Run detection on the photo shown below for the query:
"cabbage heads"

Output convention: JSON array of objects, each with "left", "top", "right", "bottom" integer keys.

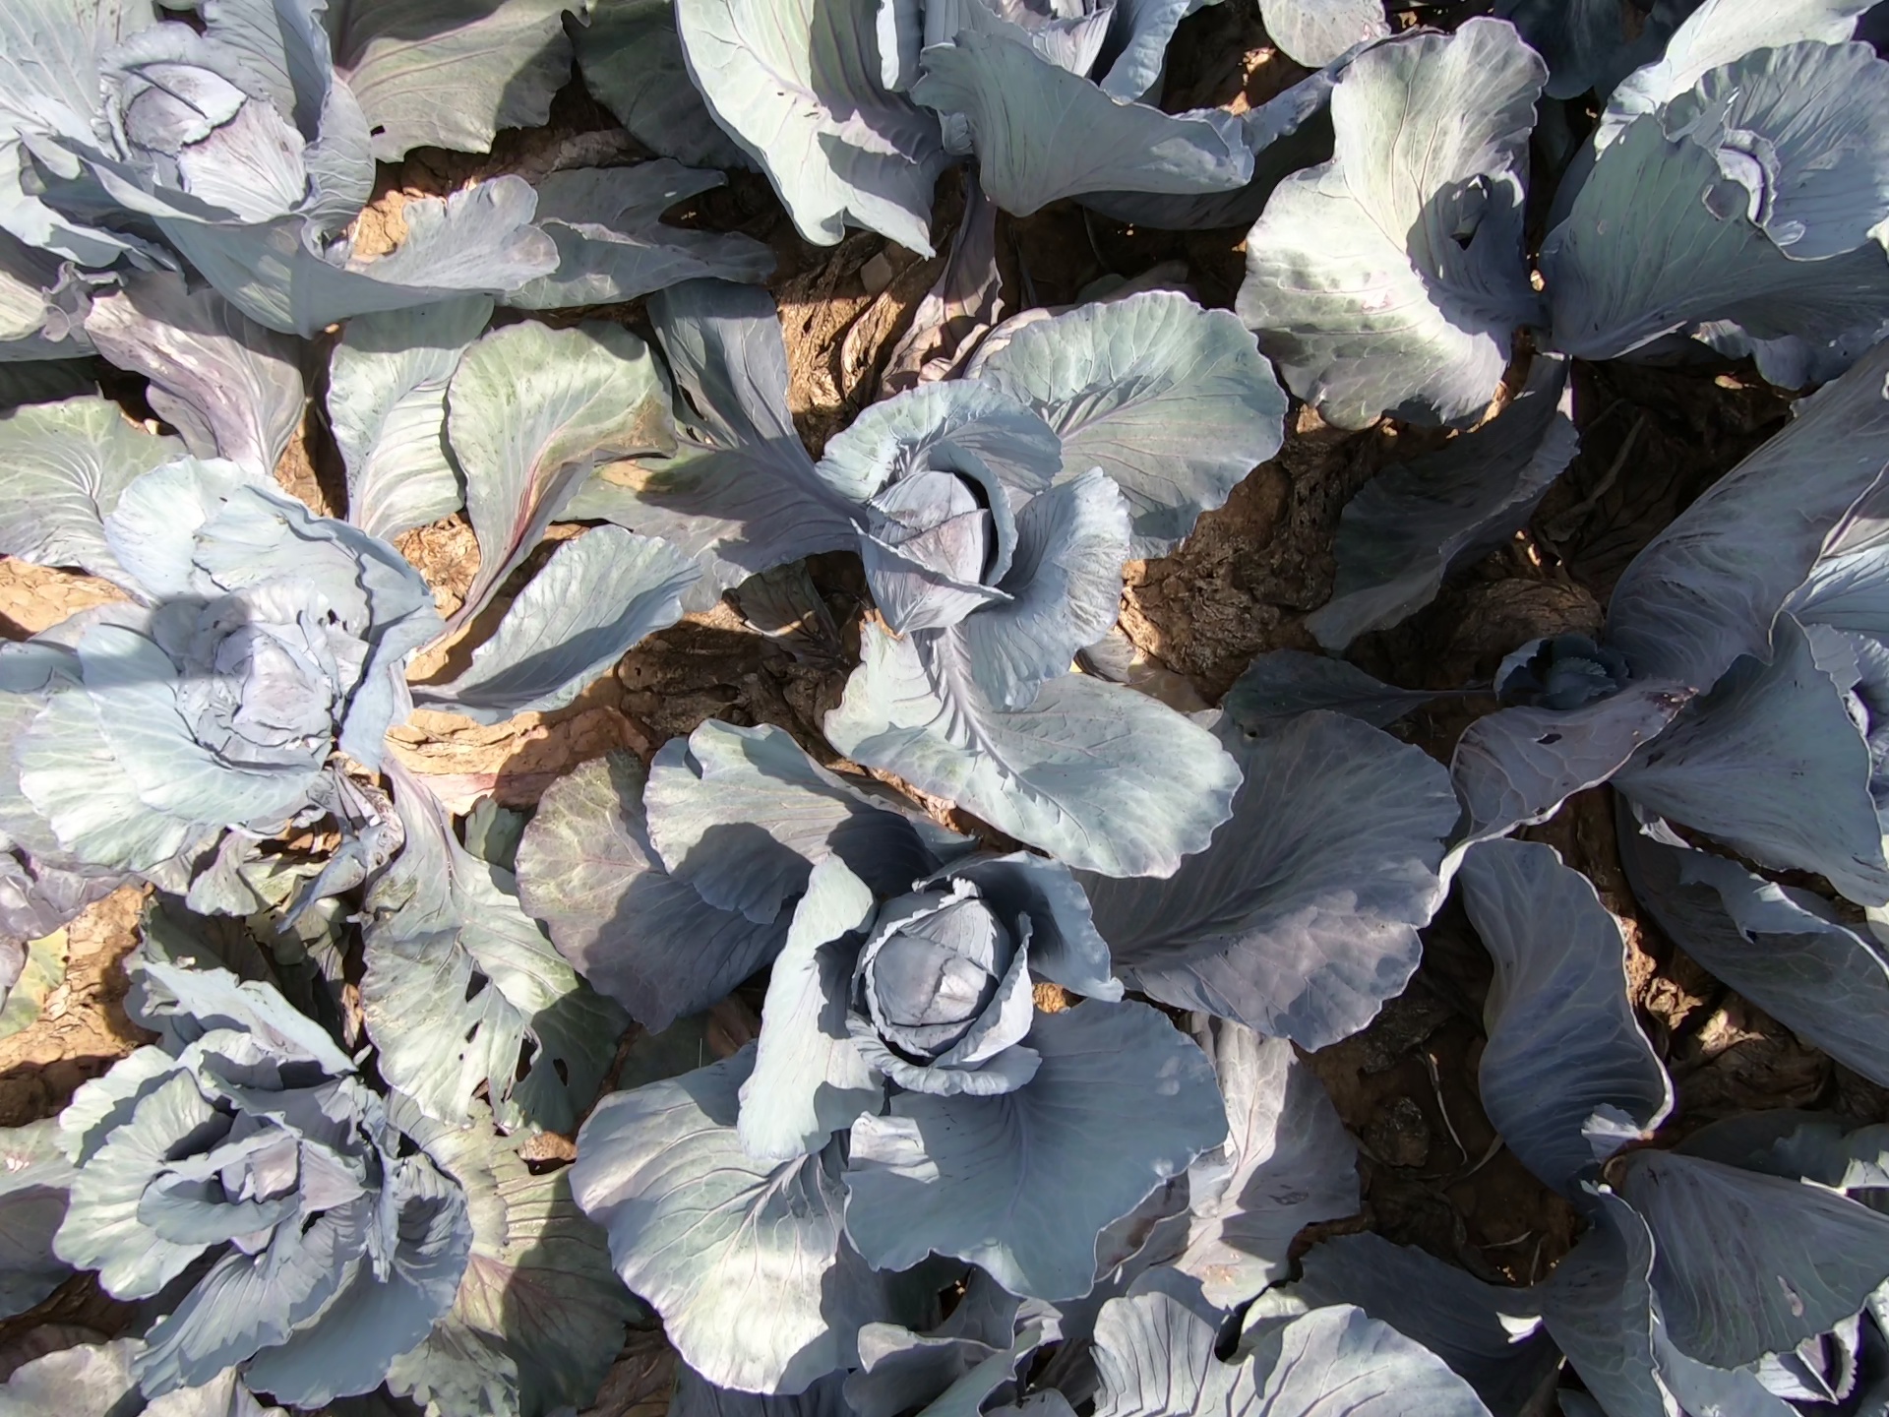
[
  {"left": 865, "top": 470, "right": 984, "bottom": 615},
  {"left": 866, "top": 892, "right": 1012, "bottom": 1058},
  {"left": 116, "top": 61, "right": 293, "bottom": 234},
  {"left": 1687, "top": 1215, "right": 1861, "bottom": 1394},
  {"left": 1626, "top": 145, "right": 1770, "bottom": 289},
  {"left": 1741, "top": 666, "right": 1875, "bottom": 807},
  {"left": 213, "top": 622, "right": 335, "bottom": 730},
  {"left": 965, "top": 2, "right": 1098, "bottom": 102},
  {"left": 218, "top": 1105, "right": 316, "bottom": 1210}
]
